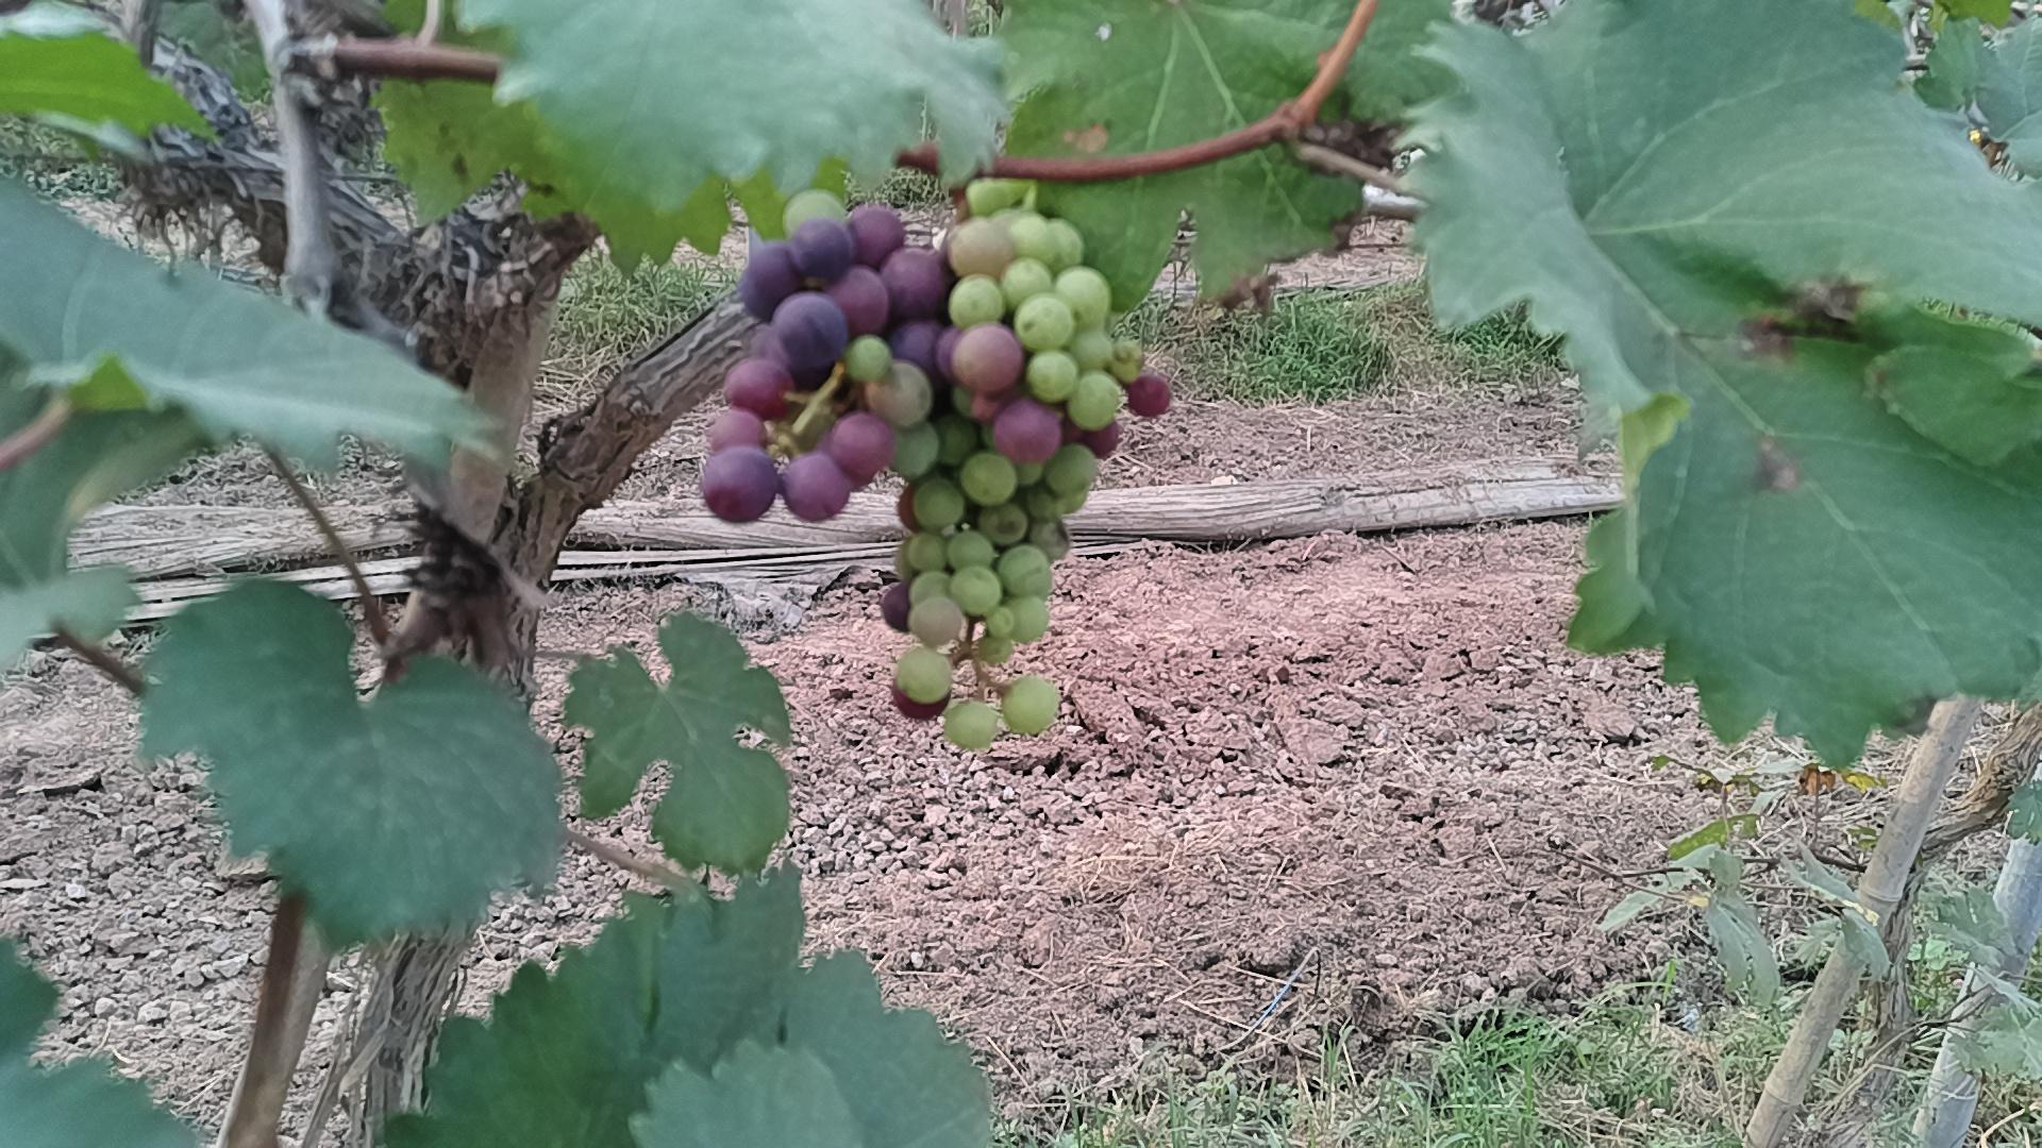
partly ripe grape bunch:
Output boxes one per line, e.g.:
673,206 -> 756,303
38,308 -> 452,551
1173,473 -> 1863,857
702,178 -> 1171,754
